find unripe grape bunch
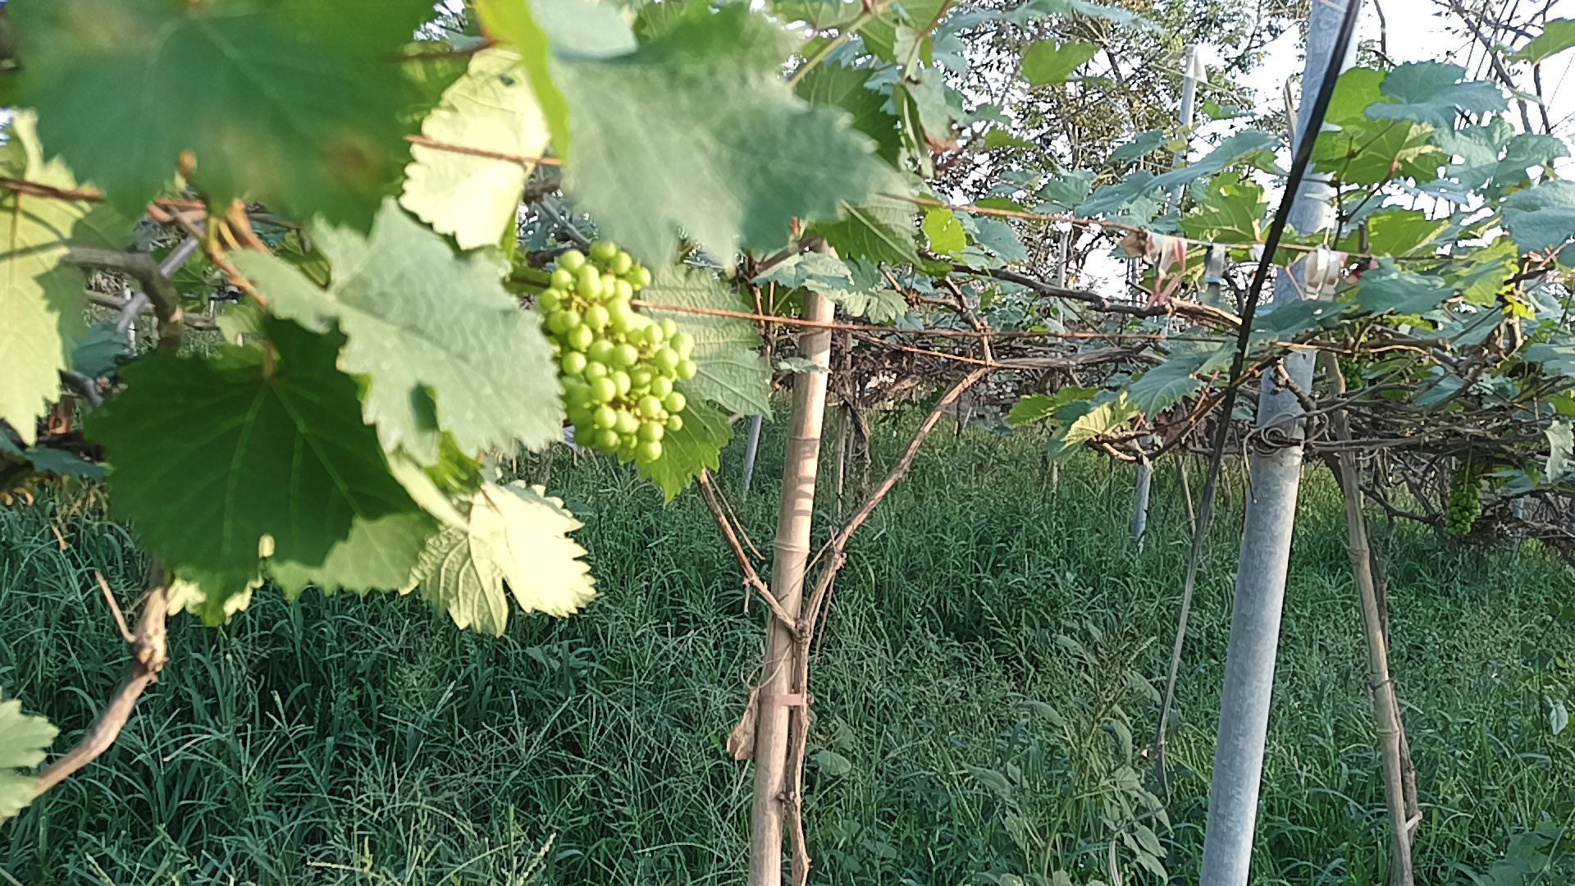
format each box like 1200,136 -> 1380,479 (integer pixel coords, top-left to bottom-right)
536,240 -> 696,462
